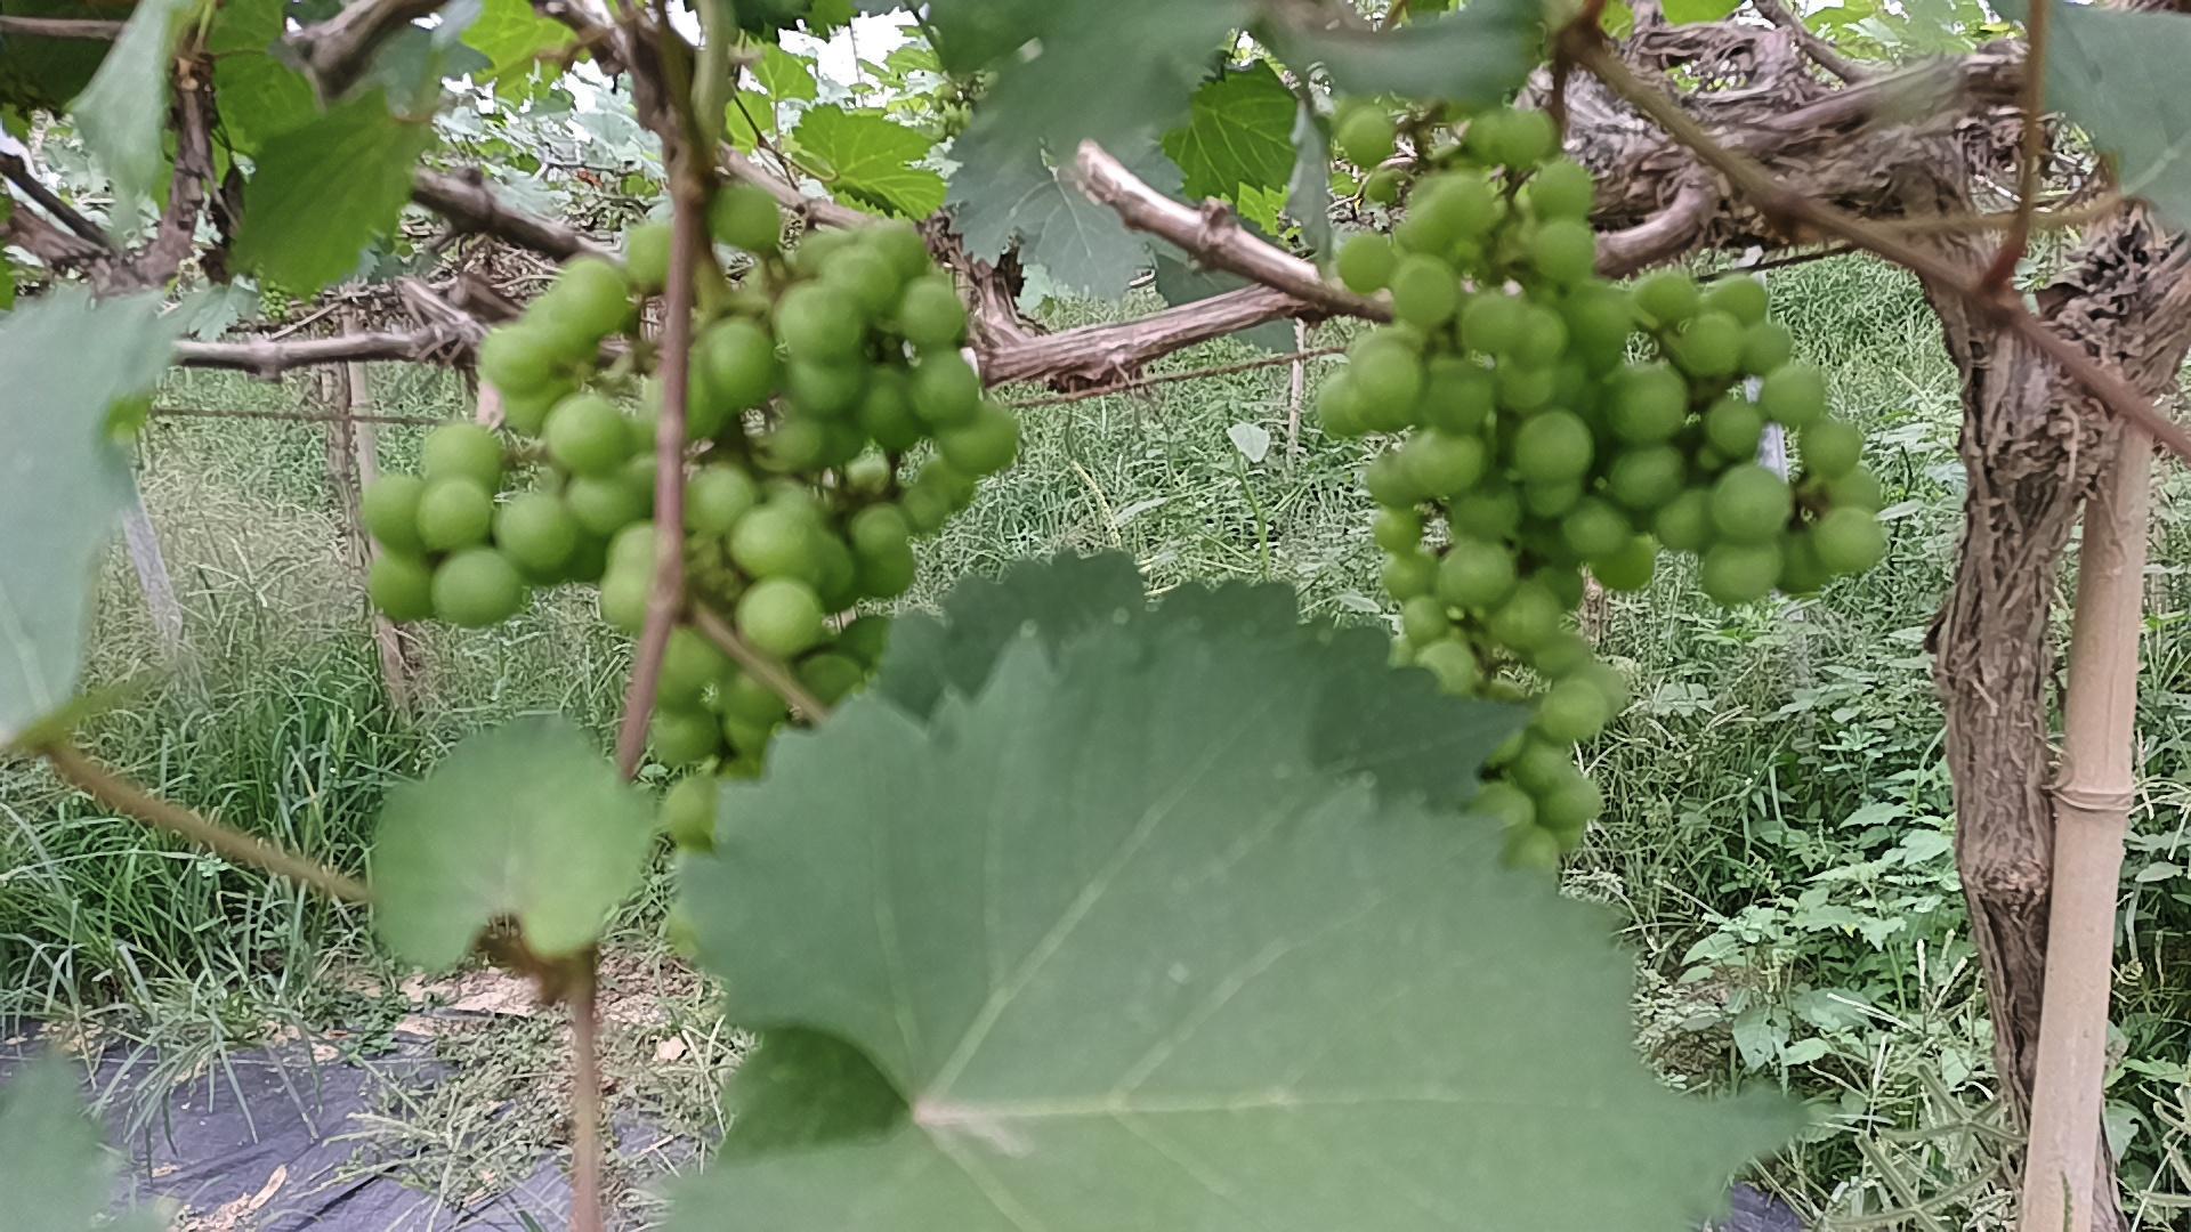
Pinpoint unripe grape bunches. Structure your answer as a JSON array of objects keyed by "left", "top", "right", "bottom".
[
  {"left": 1318, "top": 104, "right": 1883, "bottom": 868},
  {"left": 363, "top": 181, "right": 1019, "bottom": 958}
]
